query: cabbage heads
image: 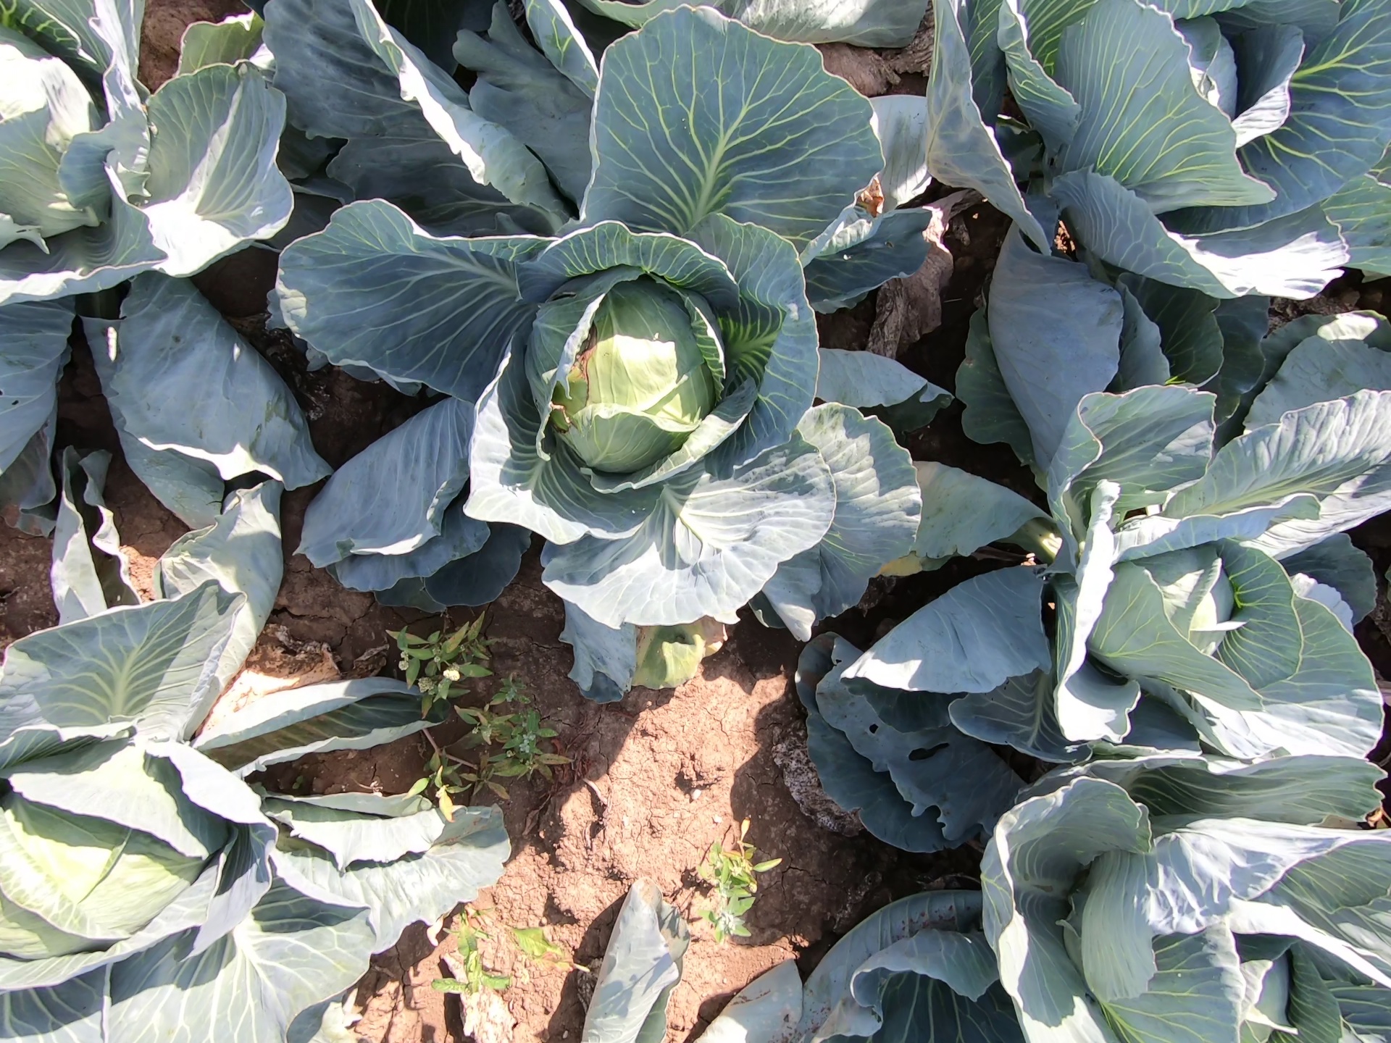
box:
[530,272,720,469]
[1110,885,1292,1039]
[0,27,105,241]
[1100,528,1237,665]
[1108,15,1237,175]
[2,754,215,963]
